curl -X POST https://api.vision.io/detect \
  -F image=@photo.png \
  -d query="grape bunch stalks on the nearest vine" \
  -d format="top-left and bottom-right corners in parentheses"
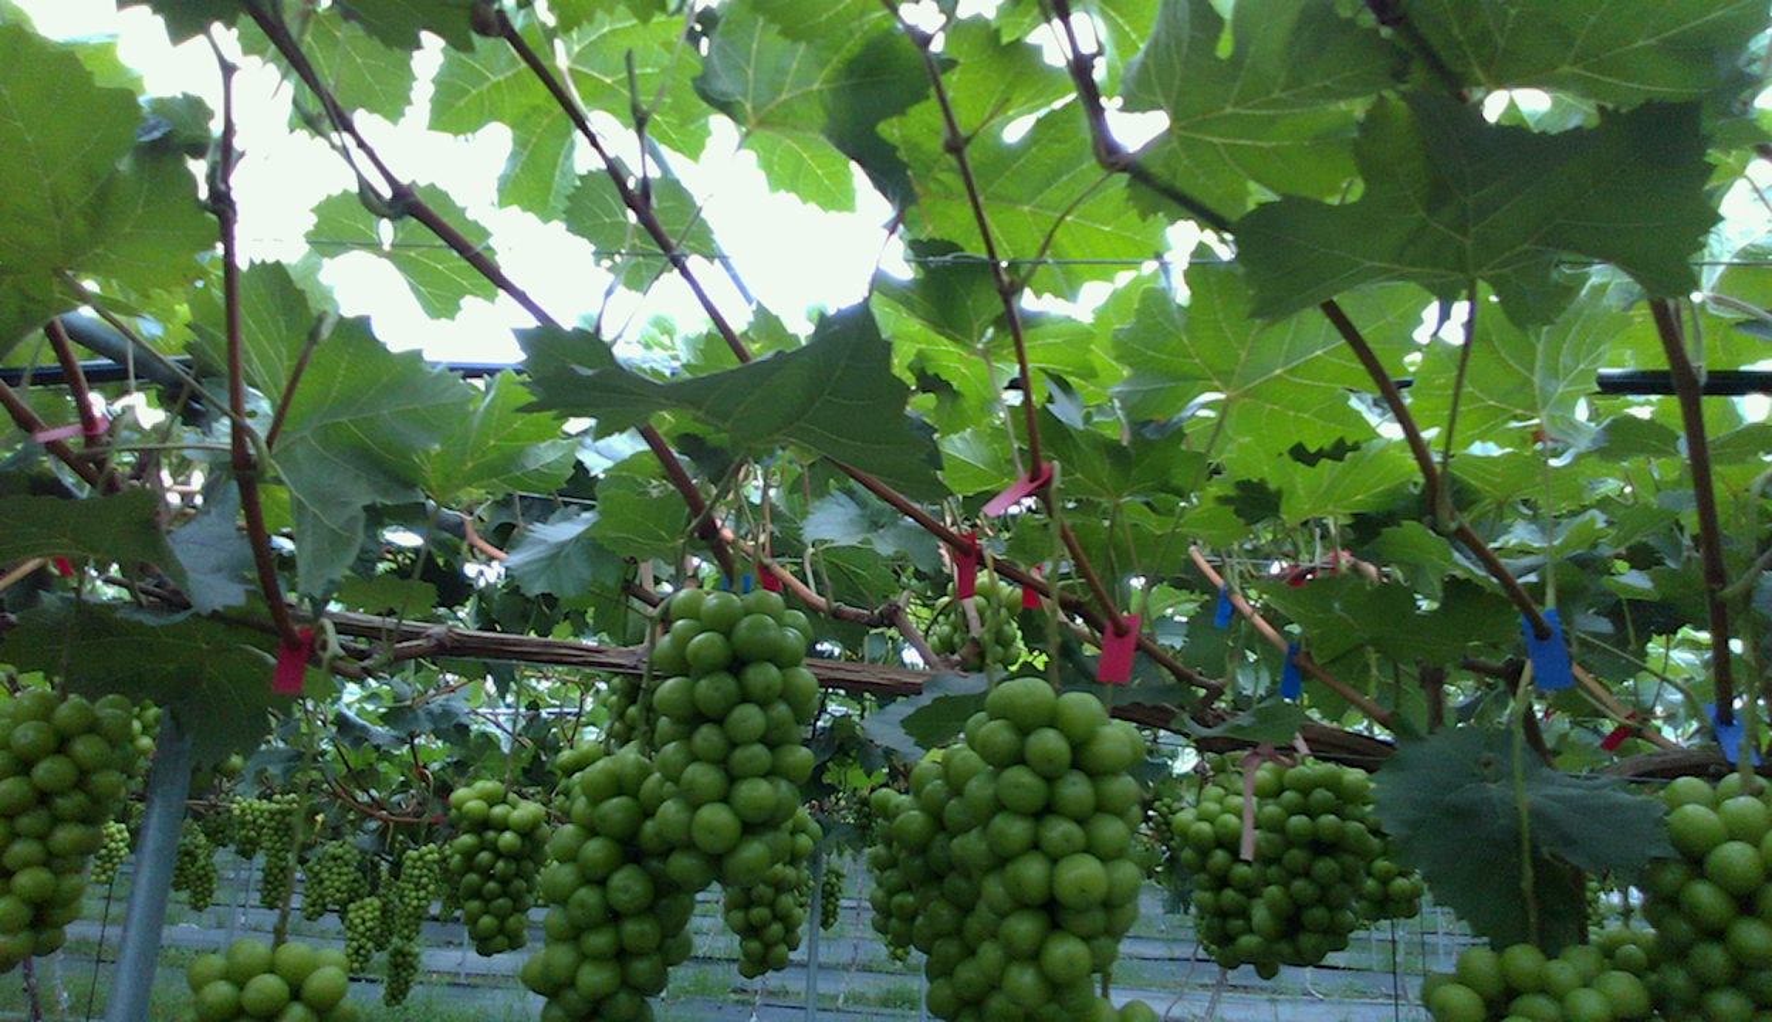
top-left (1102, 968), bottom-right (1113, 999)
top-left (635, 595), bottom-right (673, 761)
top-left (1512, 660), bottom-right (1542, 951)
top-left (270, 616), bottom-right (339, 952)
top-left (978, 537), bottom-right (1000, 693)
top-left (1715, 464), bottom-right (1771, 796)
top-left (1048, 460), bottom-right (1062, 694)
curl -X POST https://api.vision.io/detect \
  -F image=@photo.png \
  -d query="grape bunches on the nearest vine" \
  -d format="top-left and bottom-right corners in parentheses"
top-left (520, 740), bottom-right (694, 1021)
top-left (1418, 944), bottom-right (1653, 1021)
top-left (926, 678), bottom-right (1147, 1021)
top-left (872, 742), bottom-right (994, 982)
top-left (1641, 771), bottom-right (1771, 1021)
top-left (0, 687), bottom-right (139, 972)
top-left (1025, 998), bottom-right (1157, 1021)
top-left (653, 588), bottom-right (819, 894)
top-left (175, 940), bottom-right (359, 1021)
